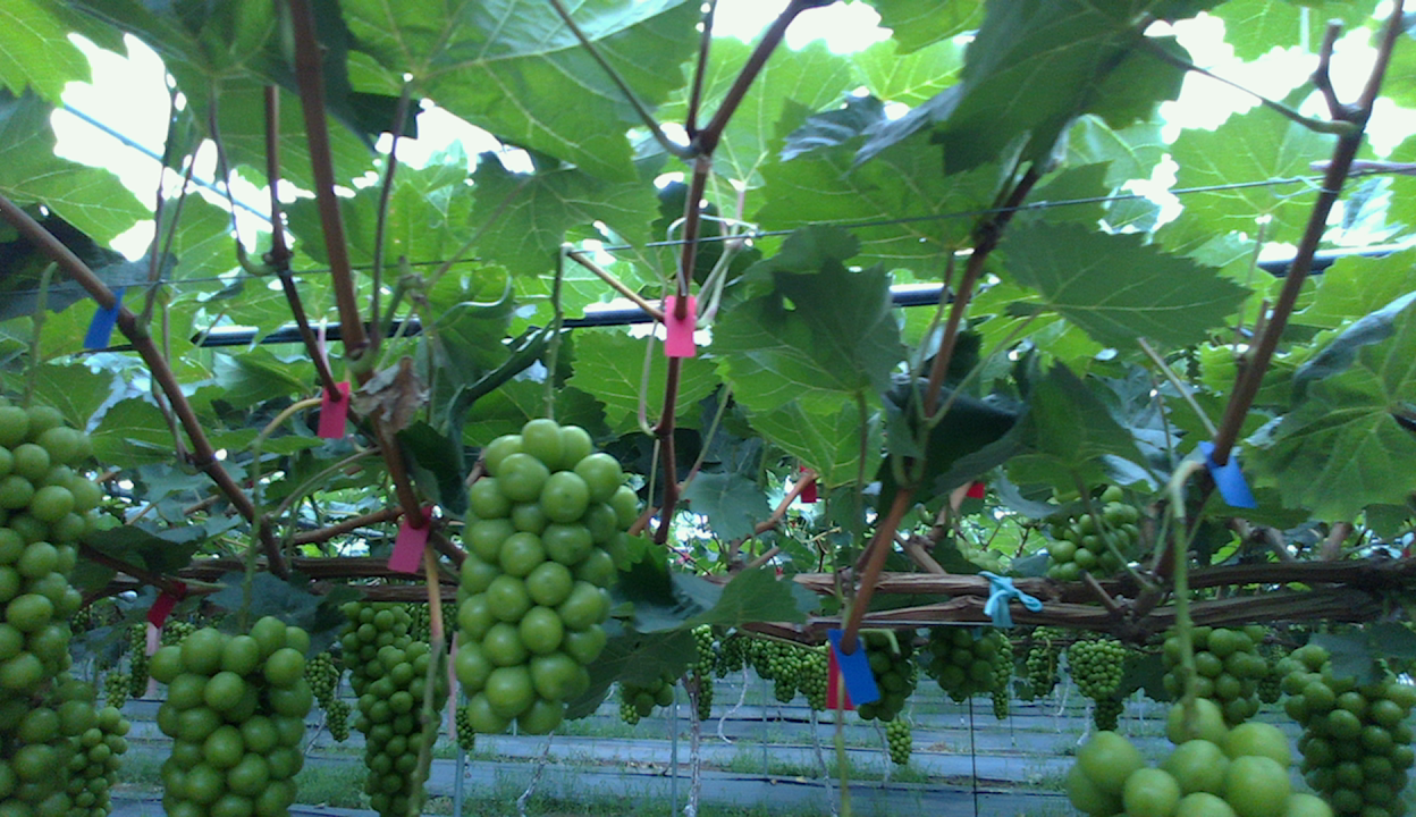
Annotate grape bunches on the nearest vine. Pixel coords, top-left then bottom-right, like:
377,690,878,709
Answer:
1067,699,1330,816
149,616,313,816
0,677,95,816
0,405,101,687
452,418,640,735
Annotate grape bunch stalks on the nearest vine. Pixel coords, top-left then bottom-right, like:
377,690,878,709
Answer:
541,241,578,420
22,261,59,408
237,397,321,634
1168,458,1206,741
